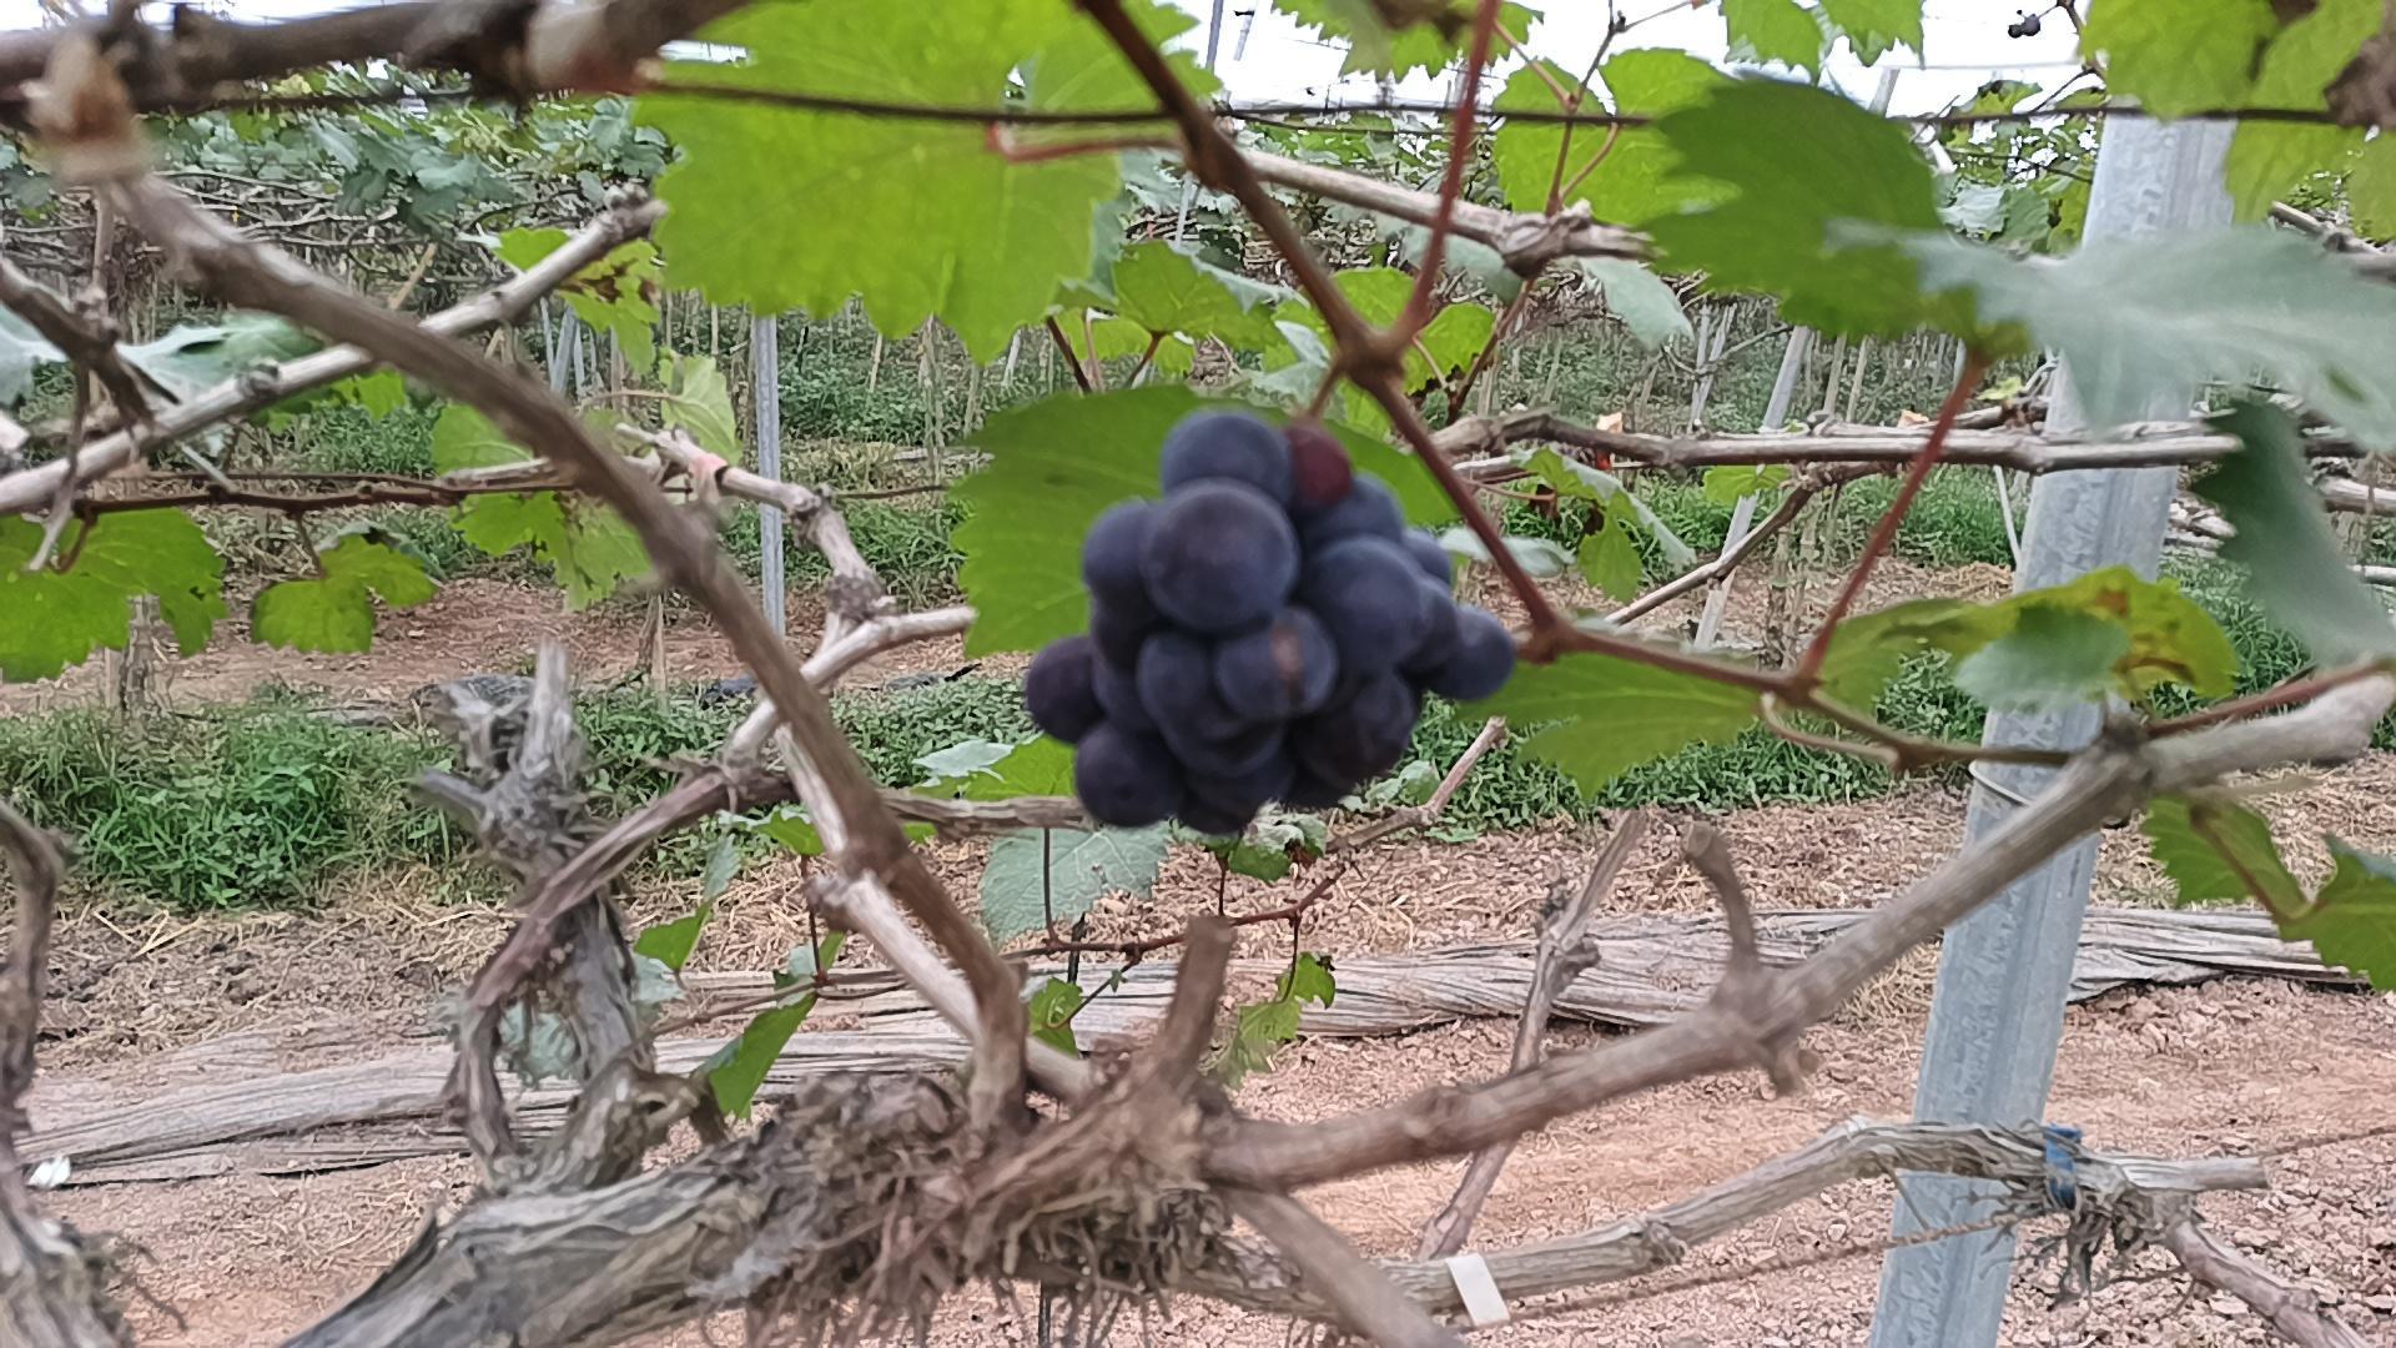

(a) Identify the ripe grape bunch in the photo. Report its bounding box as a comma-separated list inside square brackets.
[1026, 412, 1515, 834]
